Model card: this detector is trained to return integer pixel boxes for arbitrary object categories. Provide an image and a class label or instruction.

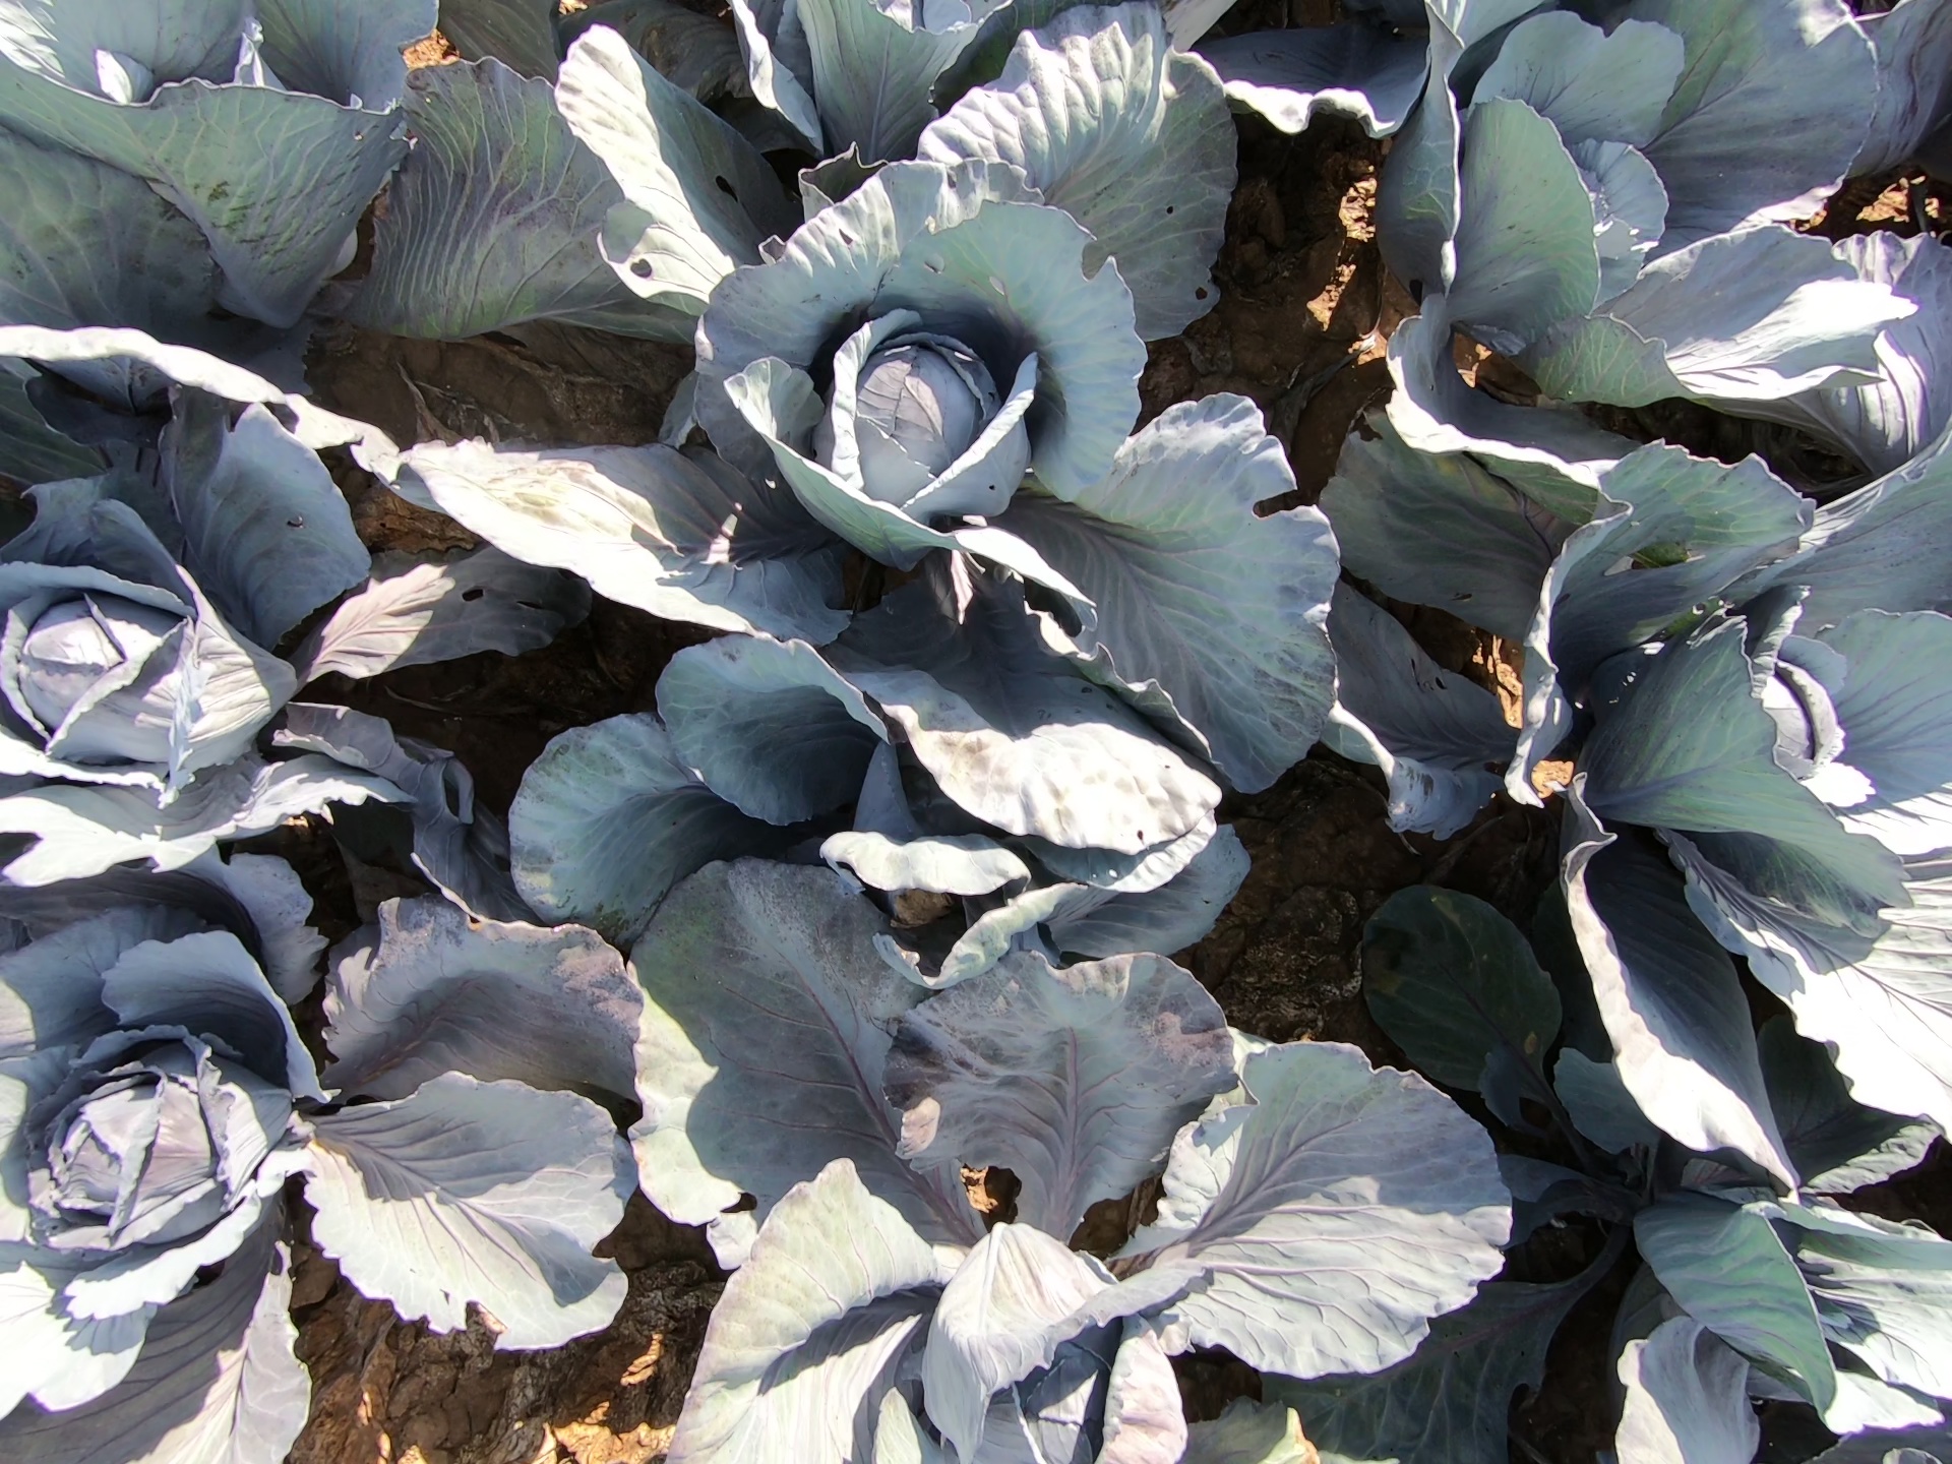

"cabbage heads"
[849,338,1002,496]
[1683,663,1840,791]
[812,4,935,117]
[939,1238,1179,1461]
[21,593,213,740]
[56,1071,221,1214]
